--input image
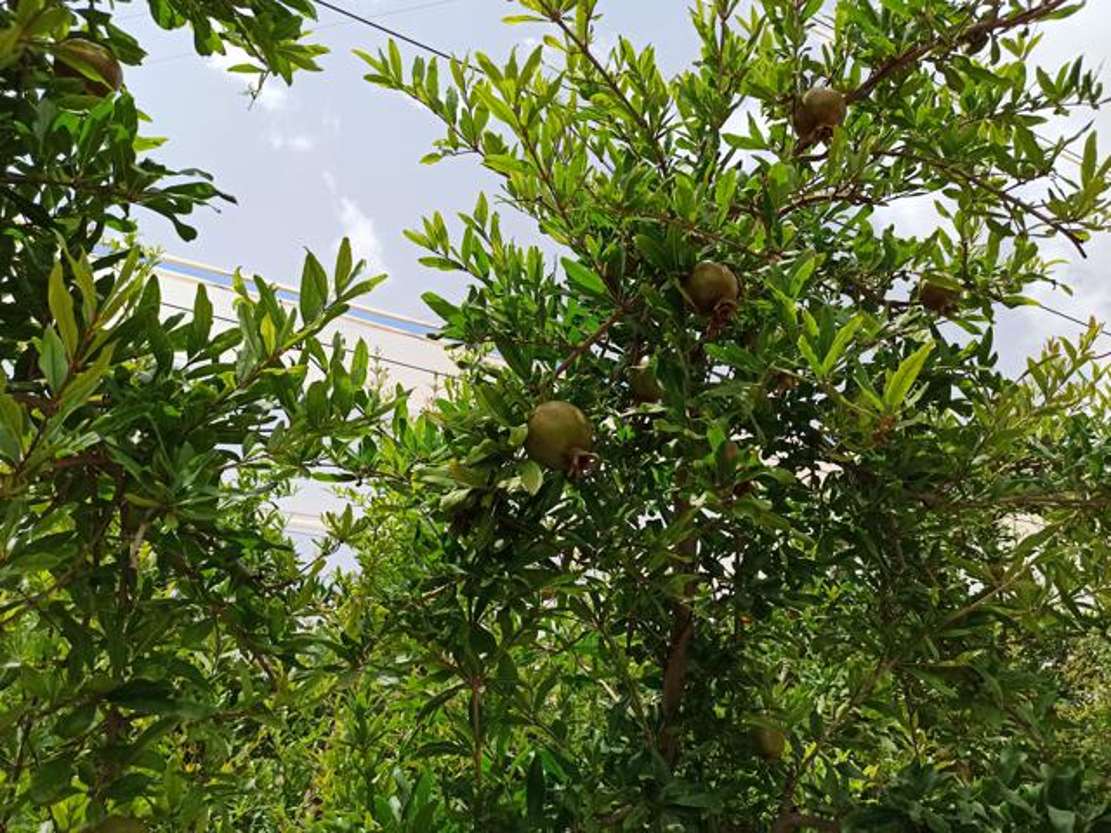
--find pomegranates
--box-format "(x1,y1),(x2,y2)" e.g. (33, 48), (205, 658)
(917, 279), (960, 318)
(524, 399), (601, 479)
(748, 732), (785, 767)
(54, 38), (123, 97)
(788, 85), (847, 144)
(680, 260), (741, 318)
